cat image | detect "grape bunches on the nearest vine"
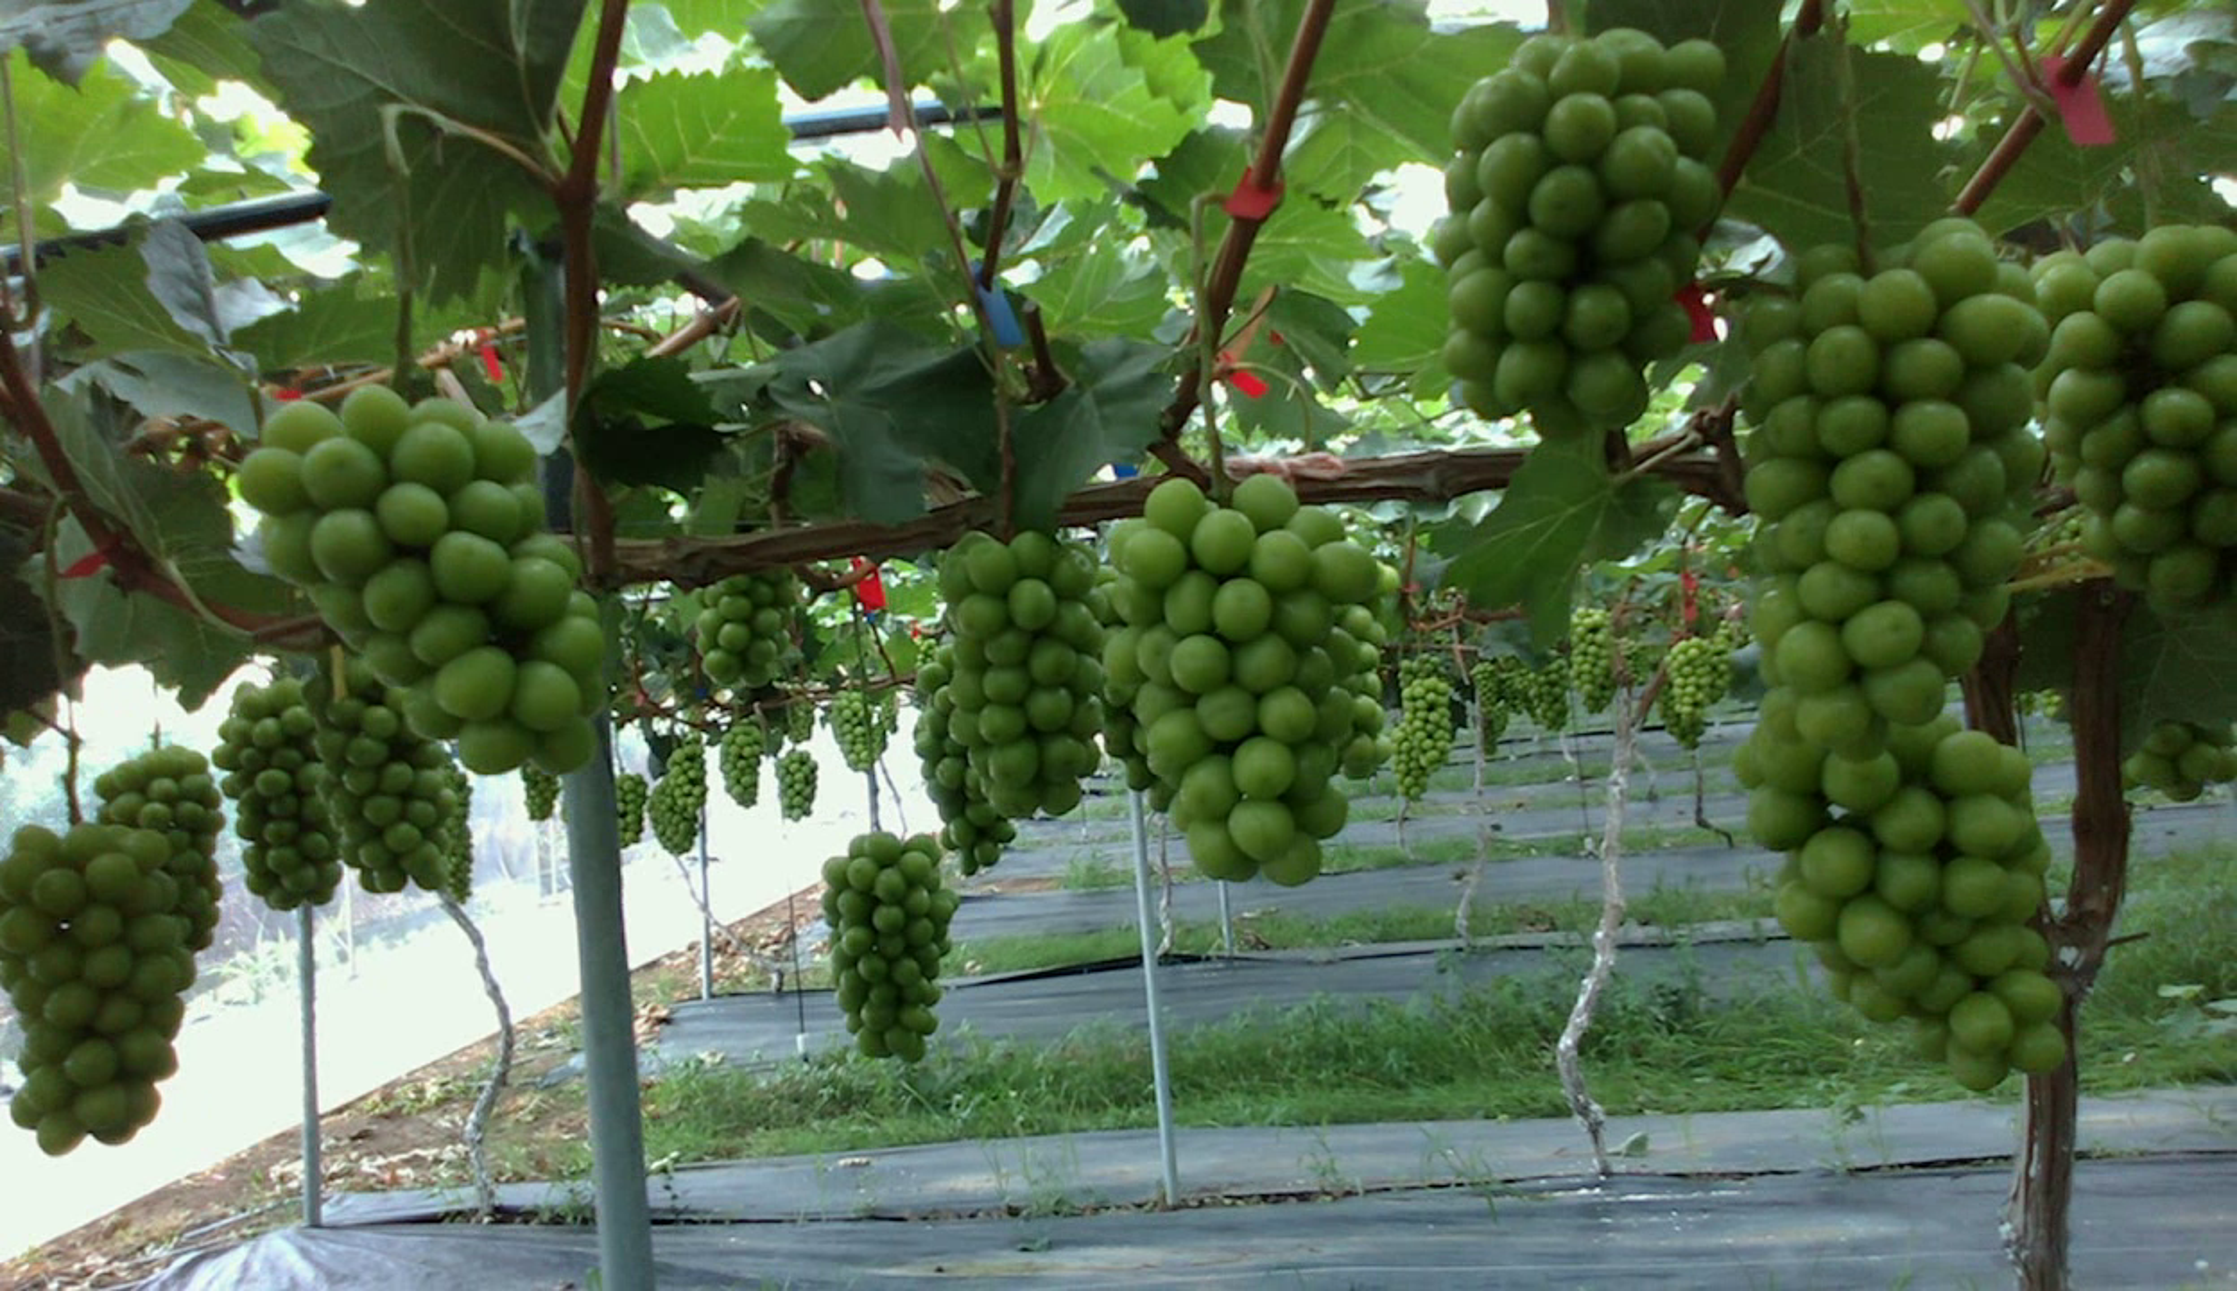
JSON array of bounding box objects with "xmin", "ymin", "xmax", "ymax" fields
[
  {"xmin": 1104, "ymin": 473, "xmax": 1377, "ymax": 888},
  {"xmin": 1733, "ymin": 712, "xmax": 2067, "ymax": 1096},
  {"xmin": 1436, "ymin": 25, "xmax": 1726, "ymax": 441},
  {"xmin": 936, "ymin": 529, "xmax": 1108, "ymax": 818},
  {"xmin": 1737, "ymin": 219, "xmax": 2047, "ymax": 764},
  {"xmin": 0, "ymin": 827, "xmax": 197, "ymax": 1155},
  {"xmin": 2036, "ymin": 222, "xmax": 2235, "ymax": 619},
  {"xmin": 235, "ymin": 387, "xmax": 606, "ymax": 778}
]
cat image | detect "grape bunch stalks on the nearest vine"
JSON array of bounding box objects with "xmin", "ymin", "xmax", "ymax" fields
[
  {"xmin": 2117, "ymin": 20, "xmax": 2164, "ymax": 230},
  {"xmin": 991, "ymin": 353, "xmax": 1018, "ymax": 540},
  {"xmin": 1190, "ymin": 192, "xmax": 1230, "ymax": 507},
  {"xmin": 1825, "ymin": 2, "xmax": 1879, "ymax": 280},
  {"xmin": 1558, "ymin": 2, "xmax": 1583, "ymax": 34},
  {"xmin": 65, "ymin": 730, "xmax": 81, "ymax": 825},
  {"xmin": 384, "ymin": 102, "xmax": 531, "ymax": 396}
]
